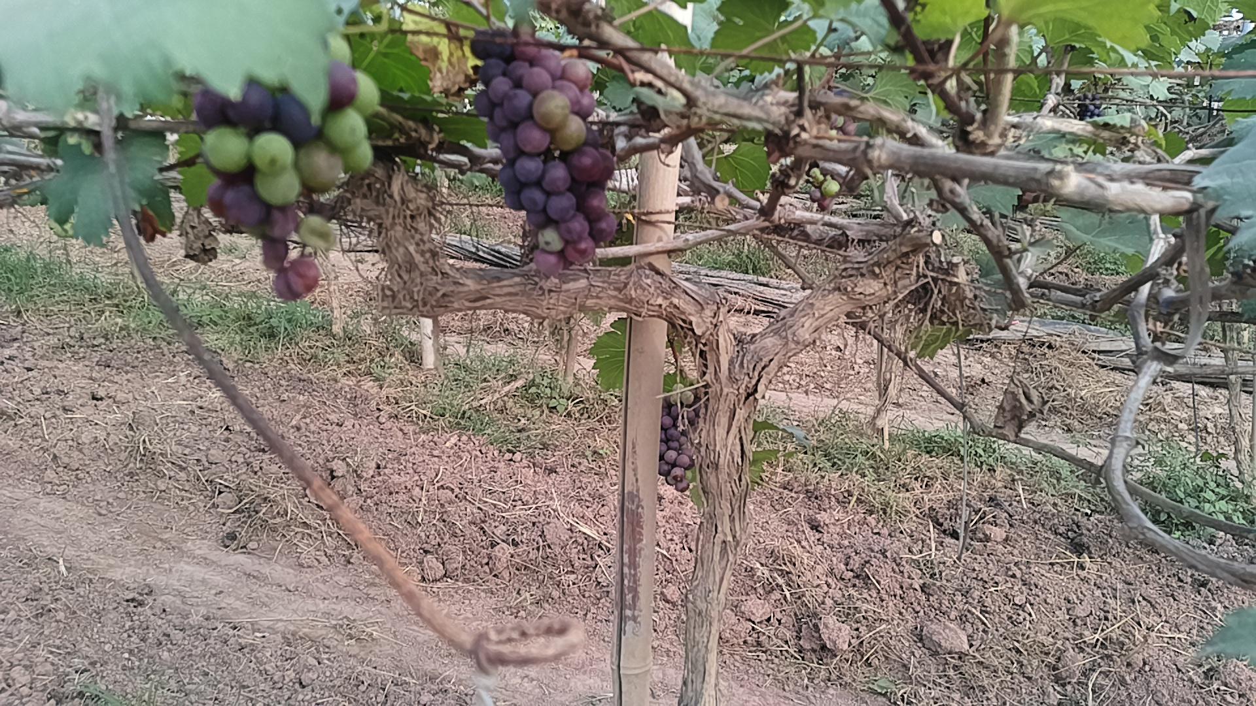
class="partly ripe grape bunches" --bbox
[658,391,703,492]
[194,51,379,300]
[472,29,618,275]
